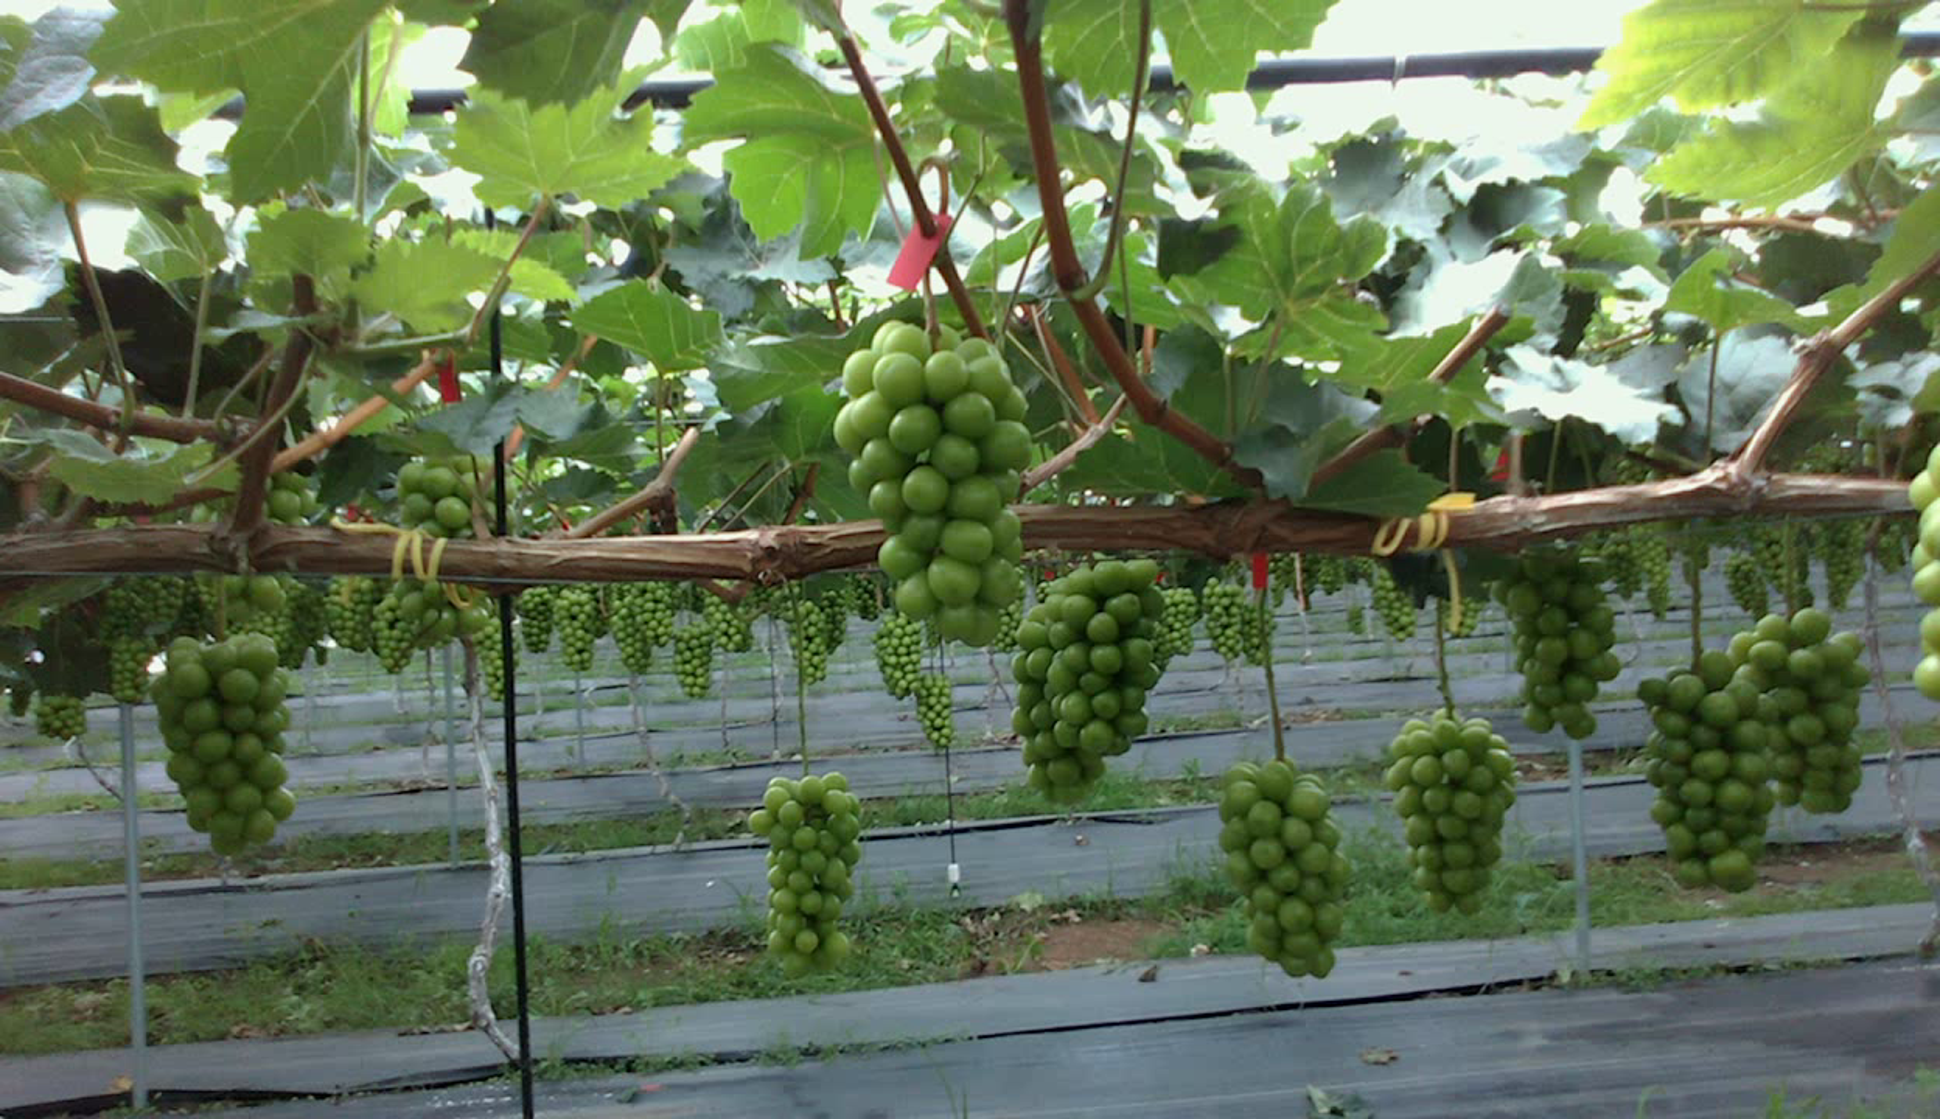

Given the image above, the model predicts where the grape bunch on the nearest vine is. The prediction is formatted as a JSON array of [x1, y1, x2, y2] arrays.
[[833, 322, 1032, 648]]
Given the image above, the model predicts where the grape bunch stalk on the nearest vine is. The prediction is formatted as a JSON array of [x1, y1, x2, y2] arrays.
[[920, 274, 937, 351]]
